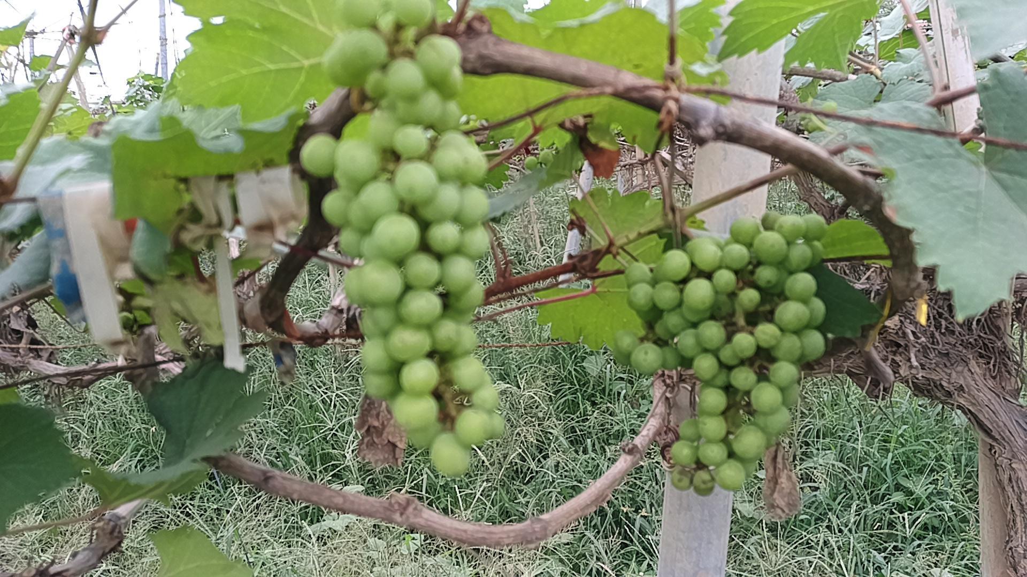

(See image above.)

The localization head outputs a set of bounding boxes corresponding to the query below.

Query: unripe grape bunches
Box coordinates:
[0,84,40,160]
[614,213,826,494]
[300,0,504,475]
